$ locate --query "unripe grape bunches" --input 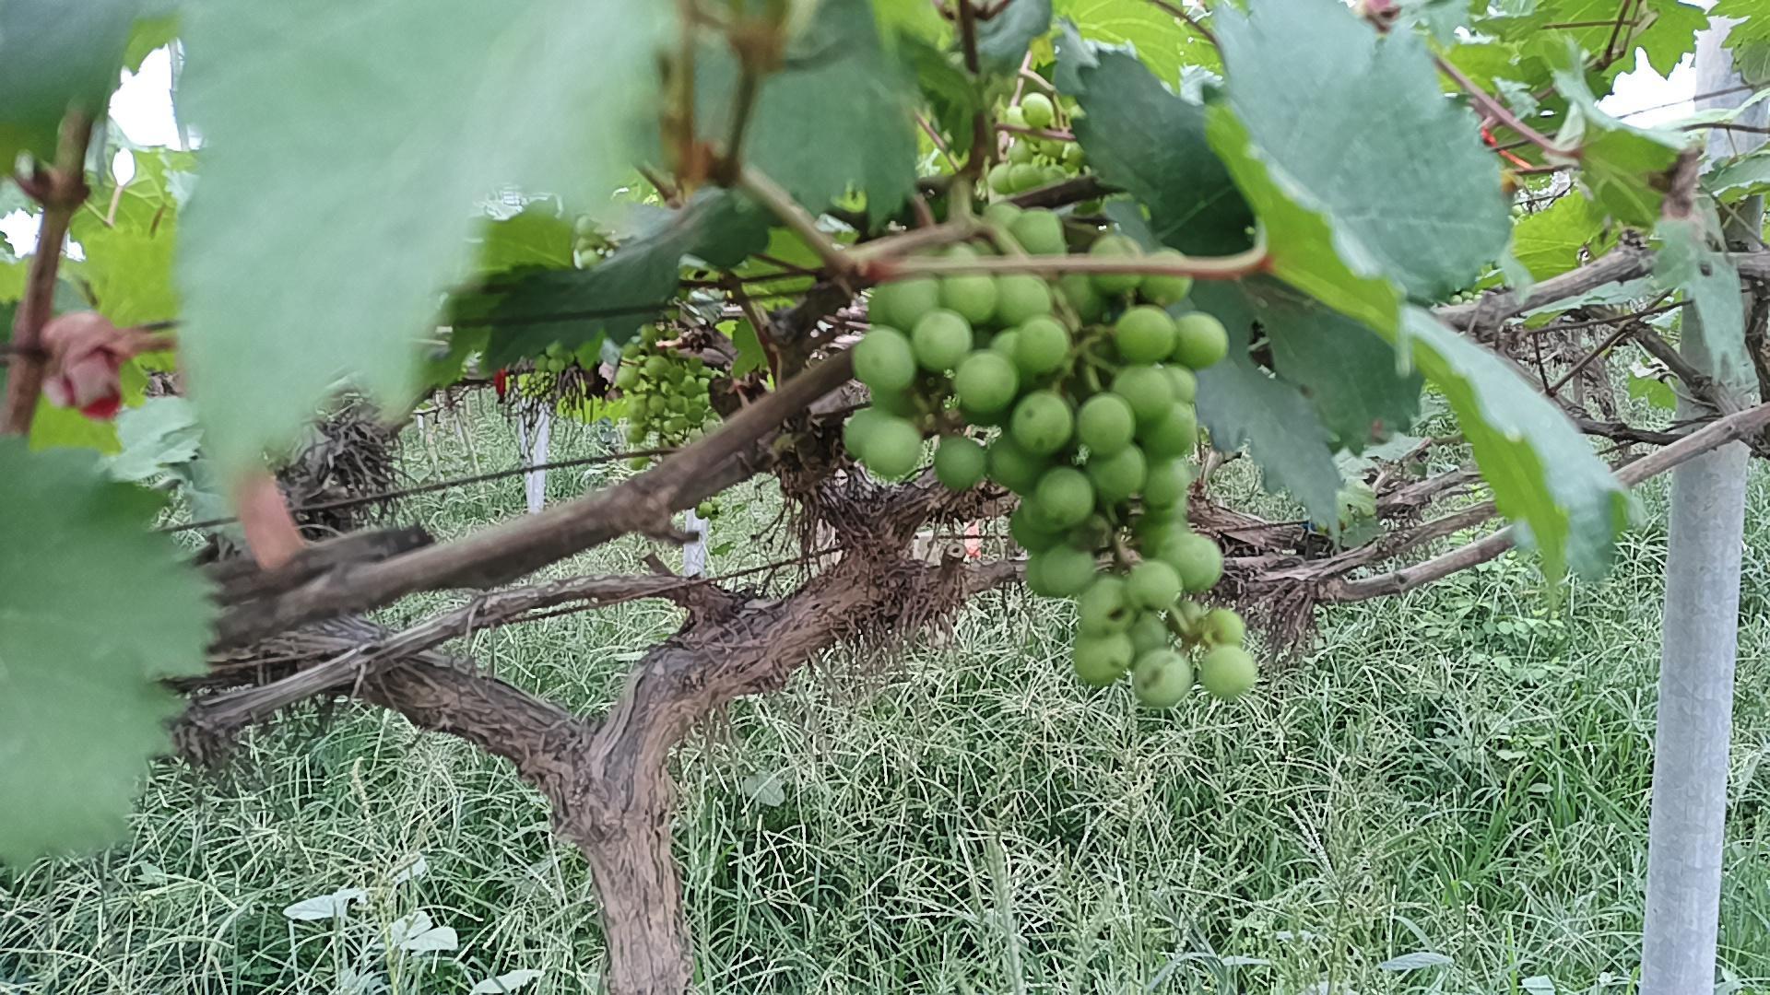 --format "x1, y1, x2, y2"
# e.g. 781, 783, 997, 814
844, 206, 1255, 708
985, 92, 1084, 197
608, 324, 721, 452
